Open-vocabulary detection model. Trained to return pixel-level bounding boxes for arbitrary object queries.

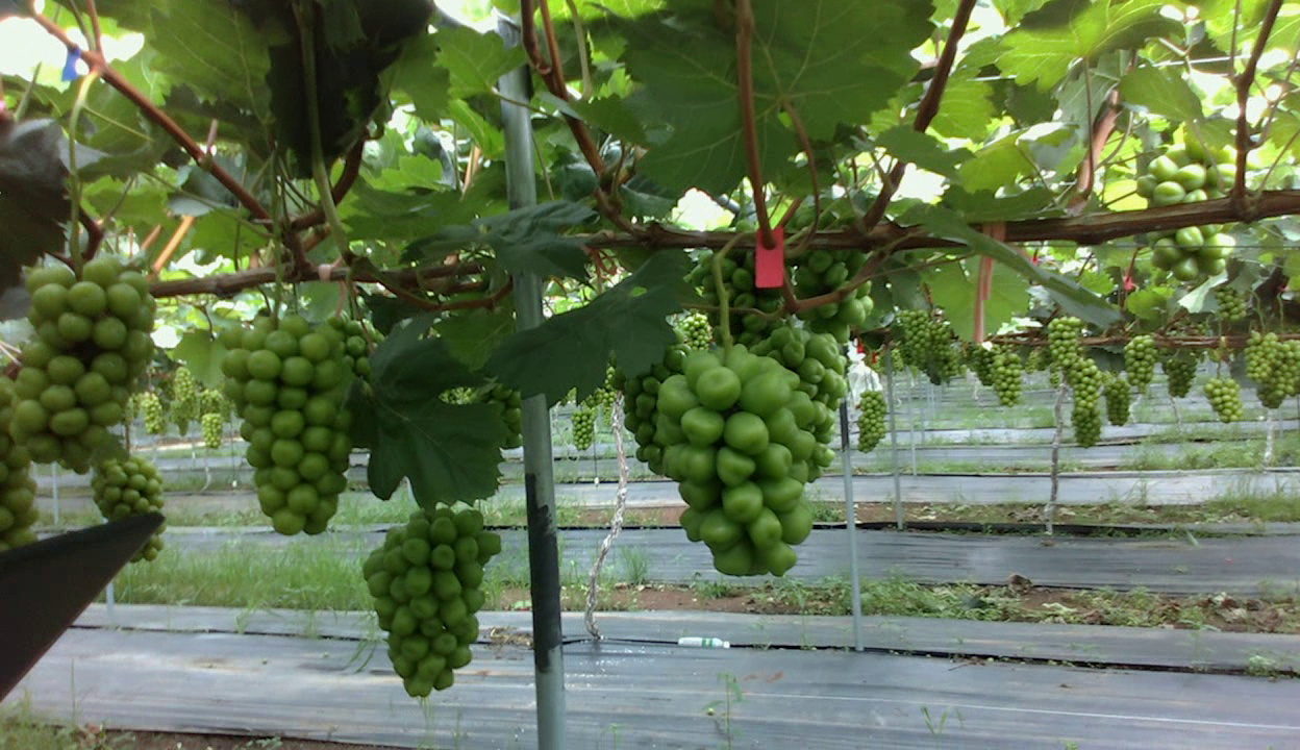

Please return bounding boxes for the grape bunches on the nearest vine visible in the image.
[656,344,817,578]
[361,507,503,698]
[221,315,353,537]
[7,256,157,471]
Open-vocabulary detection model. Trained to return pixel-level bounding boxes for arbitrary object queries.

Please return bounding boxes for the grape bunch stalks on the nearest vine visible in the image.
[269,150,282,330]
[69,71,99,280]
[345,266,434,520]
[709,231,745,361]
